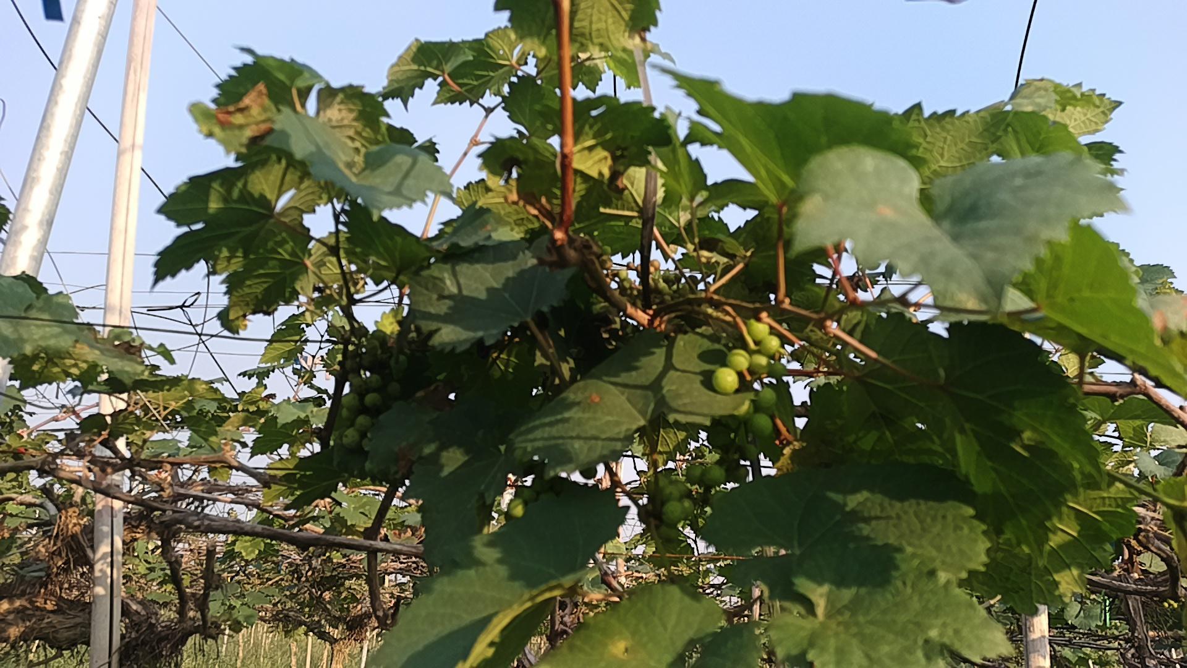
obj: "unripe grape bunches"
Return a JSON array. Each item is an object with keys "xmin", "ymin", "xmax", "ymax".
[
  {"xmin": 504, "ymin": 460, "xmax": 552, "ymax": 522},
  {"xmin": 655, "ymin": 321, "xmax": 779, "ymax": 541},
  {"xmin": 334, "ymin": 330, "xmax": 407, "ymax": 448}
]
